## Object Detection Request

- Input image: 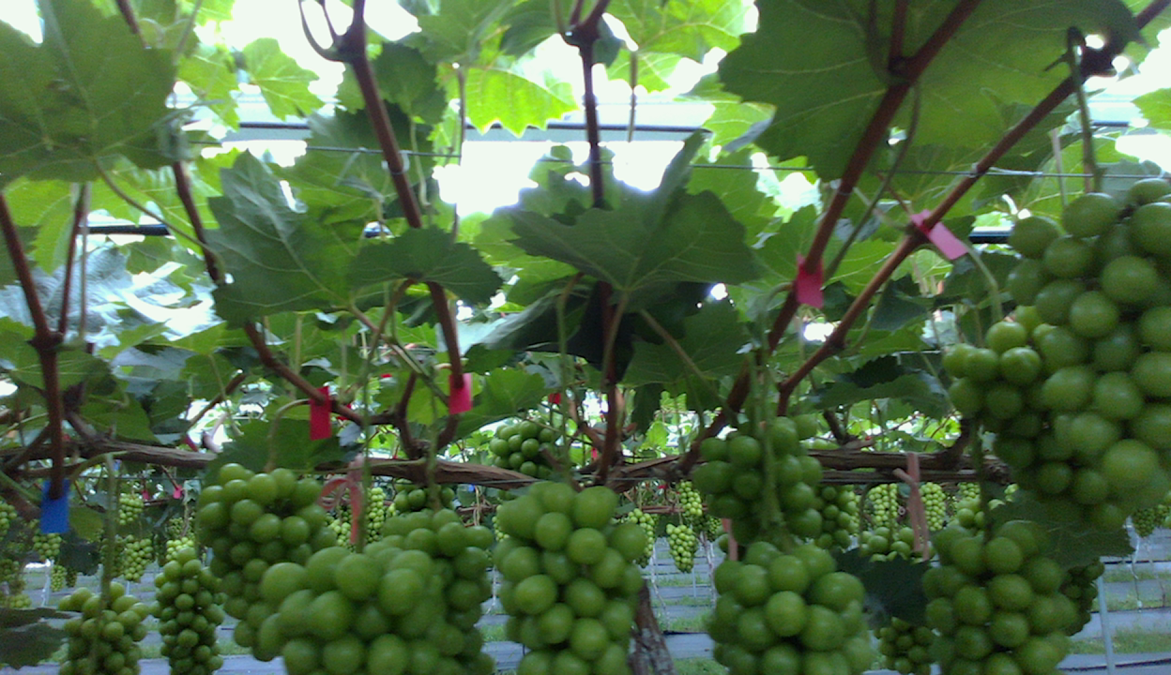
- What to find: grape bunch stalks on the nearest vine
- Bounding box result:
[557,272,584,484]
[266,399,309,472]
[356,381,371,553]
[1067,27,1107,190]
[425,394,440,509]
[748,353,763,442]
[966,246,1005,323]
[99,460,120,597]
[972,431,996,541]
[759,281,792,554]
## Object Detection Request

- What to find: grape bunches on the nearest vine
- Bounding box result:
[700,543,872,674]
[1007,177,1170,534]
[944,307,1051,493]
[384,506,494,674]
[695,415,822,549]
[258,543,467,674]
[922,520,1077,674]
[492,479,648,674]
[59,582,149,673]
[193,464,339,664]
